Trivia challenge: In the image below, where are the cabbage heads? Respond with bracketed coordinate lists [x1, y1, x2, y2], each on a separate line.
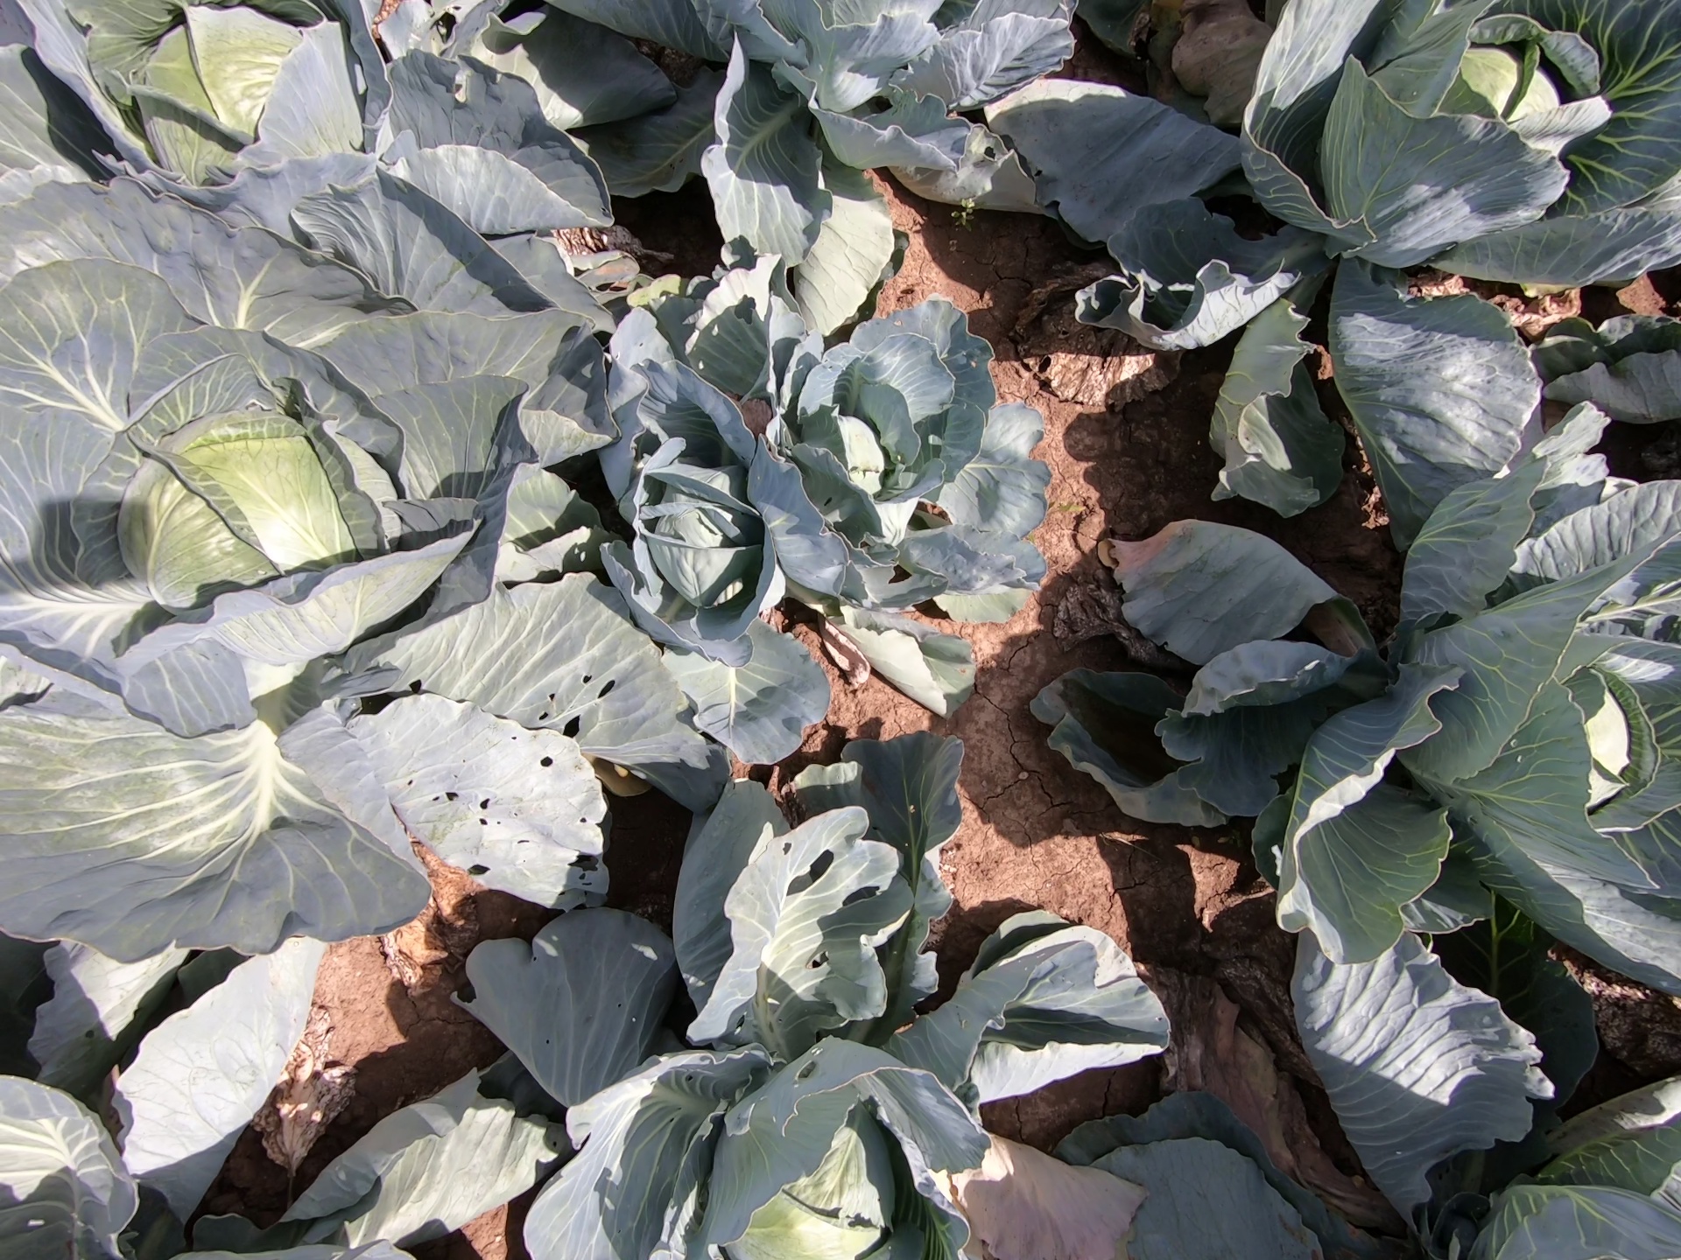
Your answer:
[116, 409, 404, 647]
[655, 482, 758, 606]
[715, 1085, 898, 1254]
[1385, 34, 1570, 209]
[813, 415, 890, 500]
[141, 7, 354, 210]
[1462, 672, 1644, 817]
